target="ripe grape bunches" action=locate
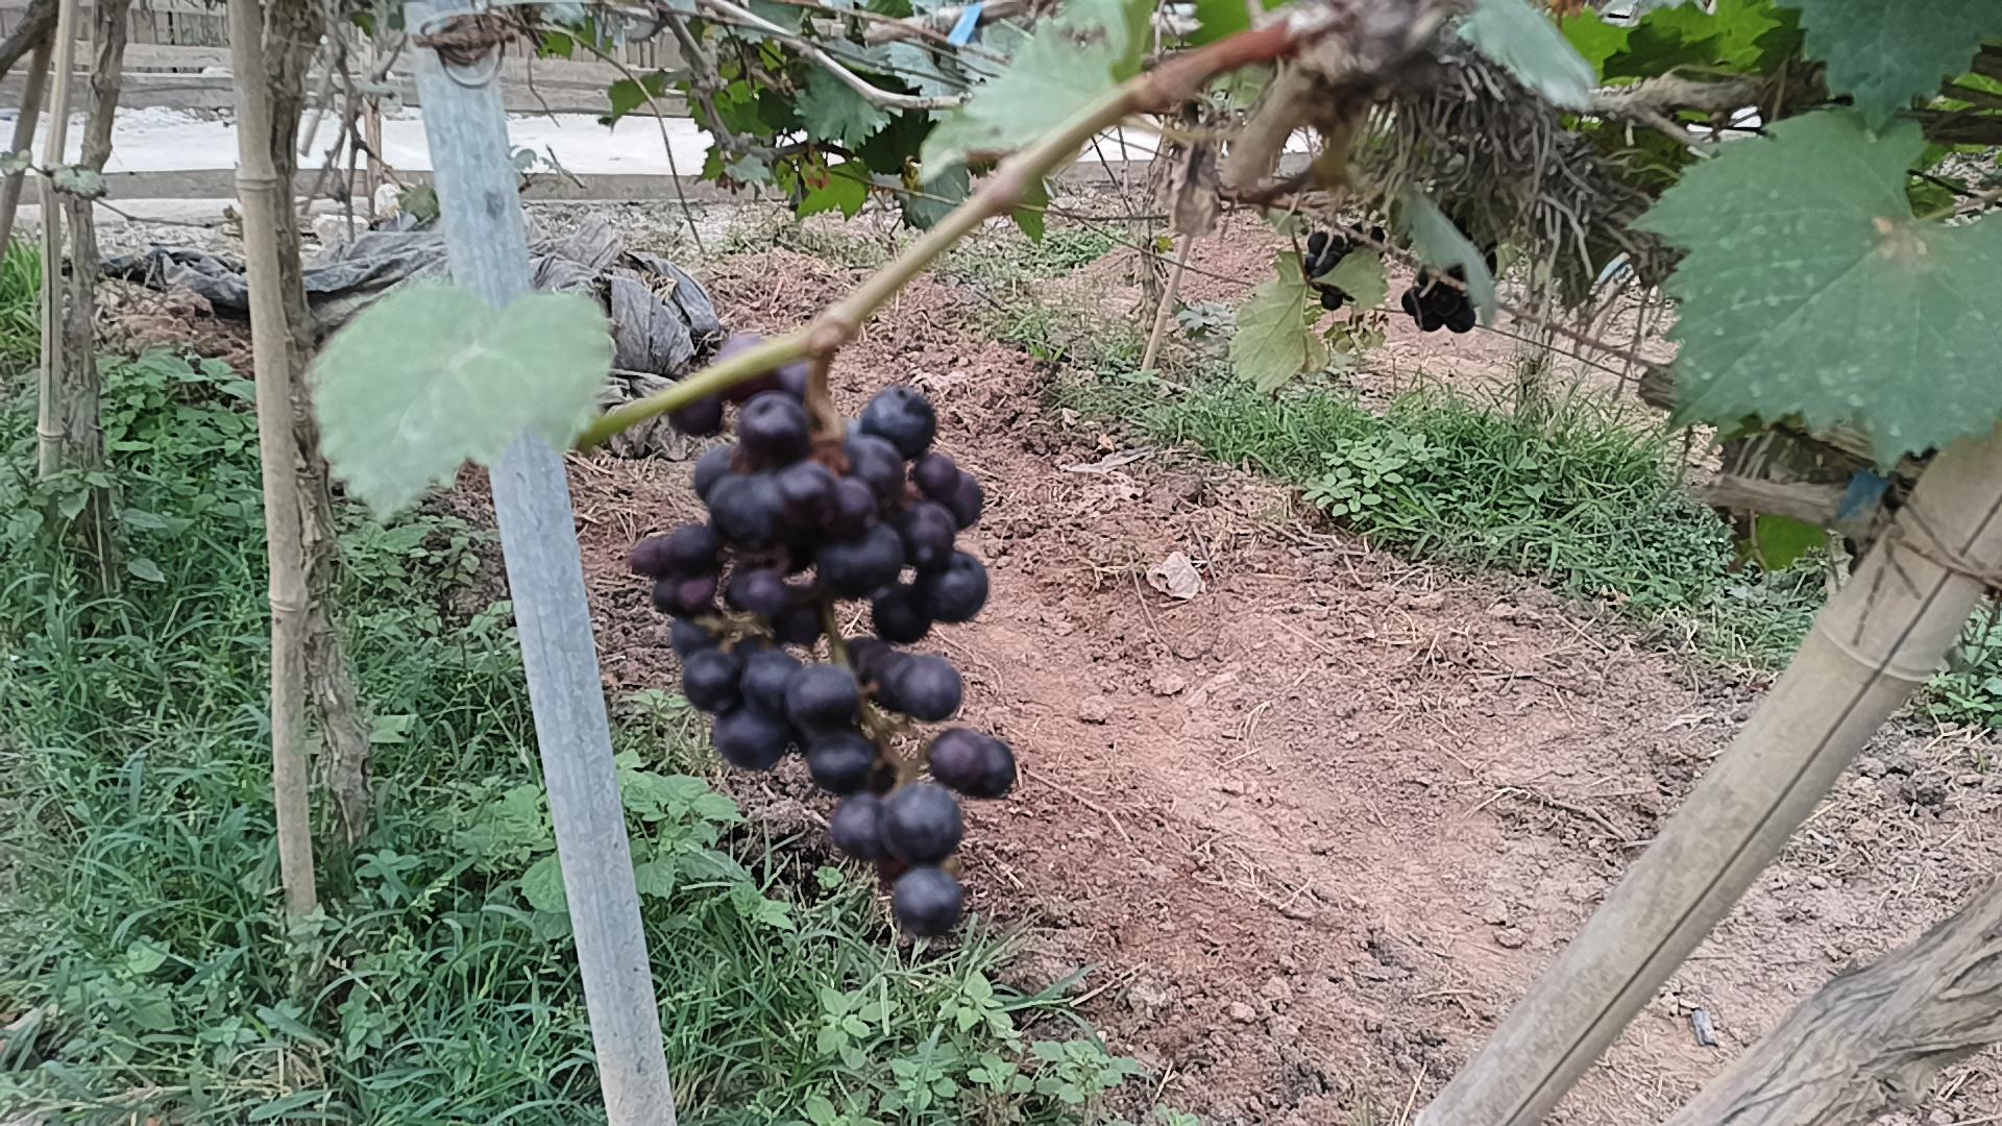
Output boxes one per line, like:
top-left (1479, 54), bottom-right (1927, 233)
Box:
top-left (1400, 241), bottom-right (1496, 334)
top-left (628, 329), bottom-right (1016, 937)
top-left (1302, 222), bottom-right (1384, 311)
